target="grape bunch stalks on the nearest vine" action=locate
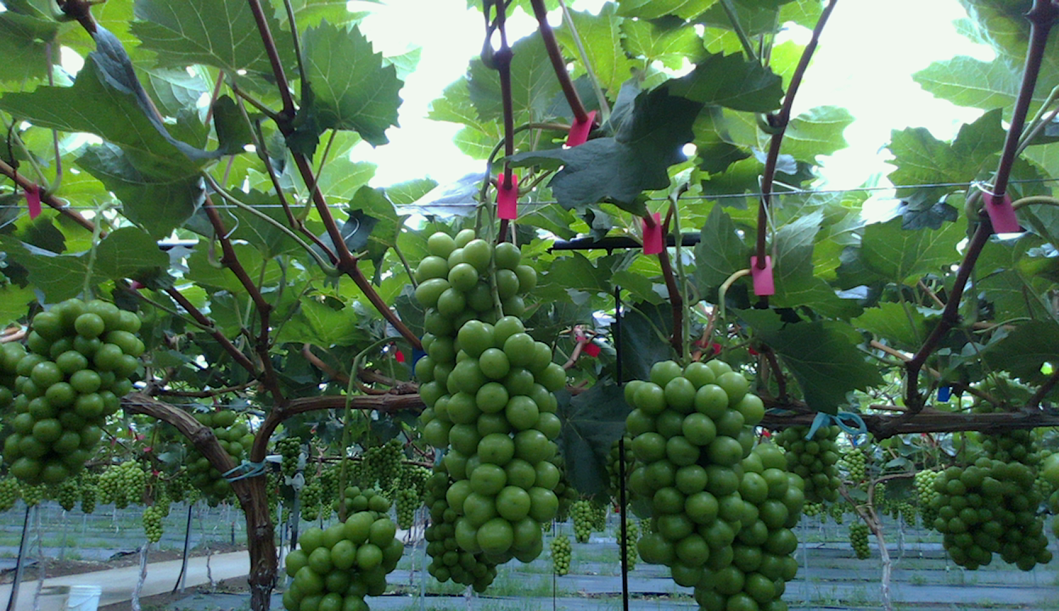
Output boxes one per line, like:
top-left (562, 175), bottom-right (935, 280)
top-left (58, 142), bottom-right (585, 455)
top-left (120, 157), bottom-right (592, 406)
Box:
top-left (474, 124), bottom-right (569, 238)
top-left (669, 182), bottom-right (690, 369)
top-left (339, 336), bottom-right (404, 521)
top-left (84, 203), bottom-right (119, 301)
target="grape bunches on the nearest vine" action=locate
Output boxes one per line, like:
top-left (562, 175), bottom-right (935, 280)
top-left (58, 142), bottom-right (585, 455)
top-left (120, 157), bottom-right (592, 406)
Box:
top-left (281, 511), bottom-right (404, 610)
top-left (693, 443), bottom-right (805, 610)
top-left (445, 316), bottom-right (567, 564)
top-left (625, 358), bottom-right (765, 587)
top-left (3, 298), bottom-right (144, 488)
top-left (414, 229), bottom-right (537, 448)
